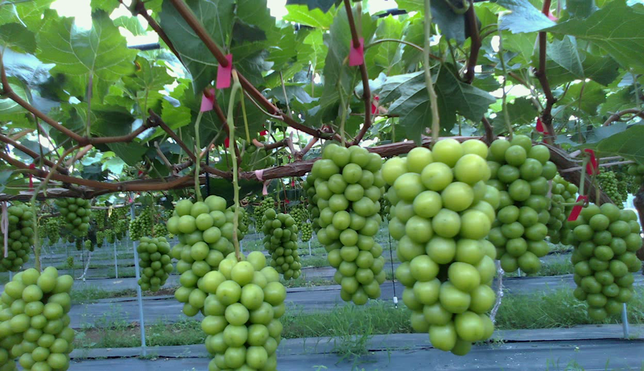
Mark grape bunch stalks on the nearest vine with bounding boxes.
[424,0,439,149]
[195,111,204,201]
[31,144,80,274]
[227,68,241,262]
[497,10,512,142]
[337,54,349,147]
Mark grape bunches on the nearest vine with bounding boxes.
[484,134,557,274]
[201,251,287,370]
[568,203,642,321]
[312,143,387,306]
[381,138,500,356]
[166,195,234,317]
[1,266,74,370]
